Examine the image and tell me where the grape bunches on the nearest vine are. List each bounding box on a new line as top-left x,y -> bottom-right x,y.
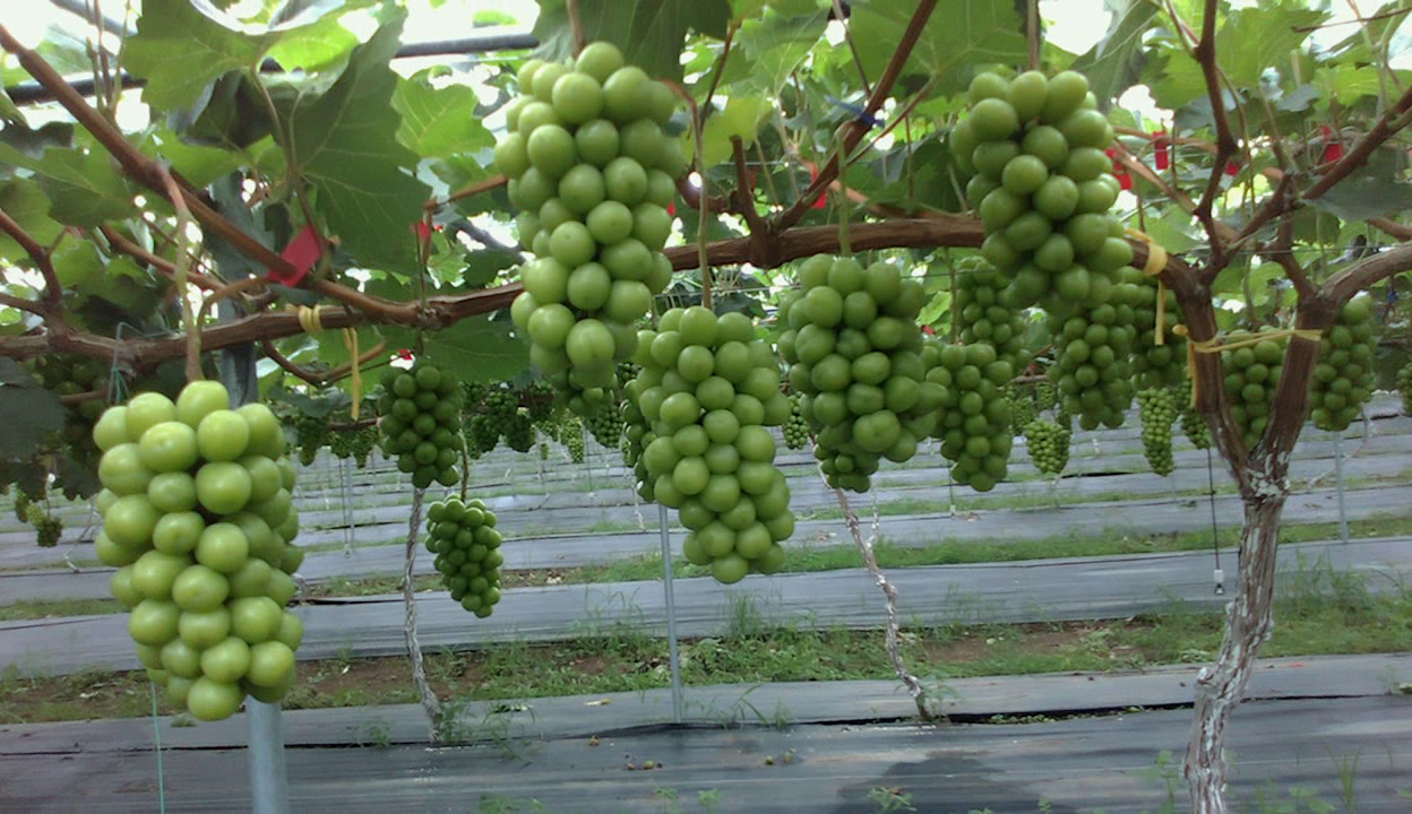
92,380 -> 307,720
493,43 -> 682,388
632,306 -> 794,584
776,253 -> 952,464
949,70 -> 1136,319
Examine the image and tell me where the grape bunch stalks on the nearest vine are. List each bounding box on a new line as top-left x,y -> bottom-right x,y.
161,173 -> 203,381
1026,0 -> 1039,70
669,80 -> 711,309
566,3 -> 585,55
826,122 -> 852,258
